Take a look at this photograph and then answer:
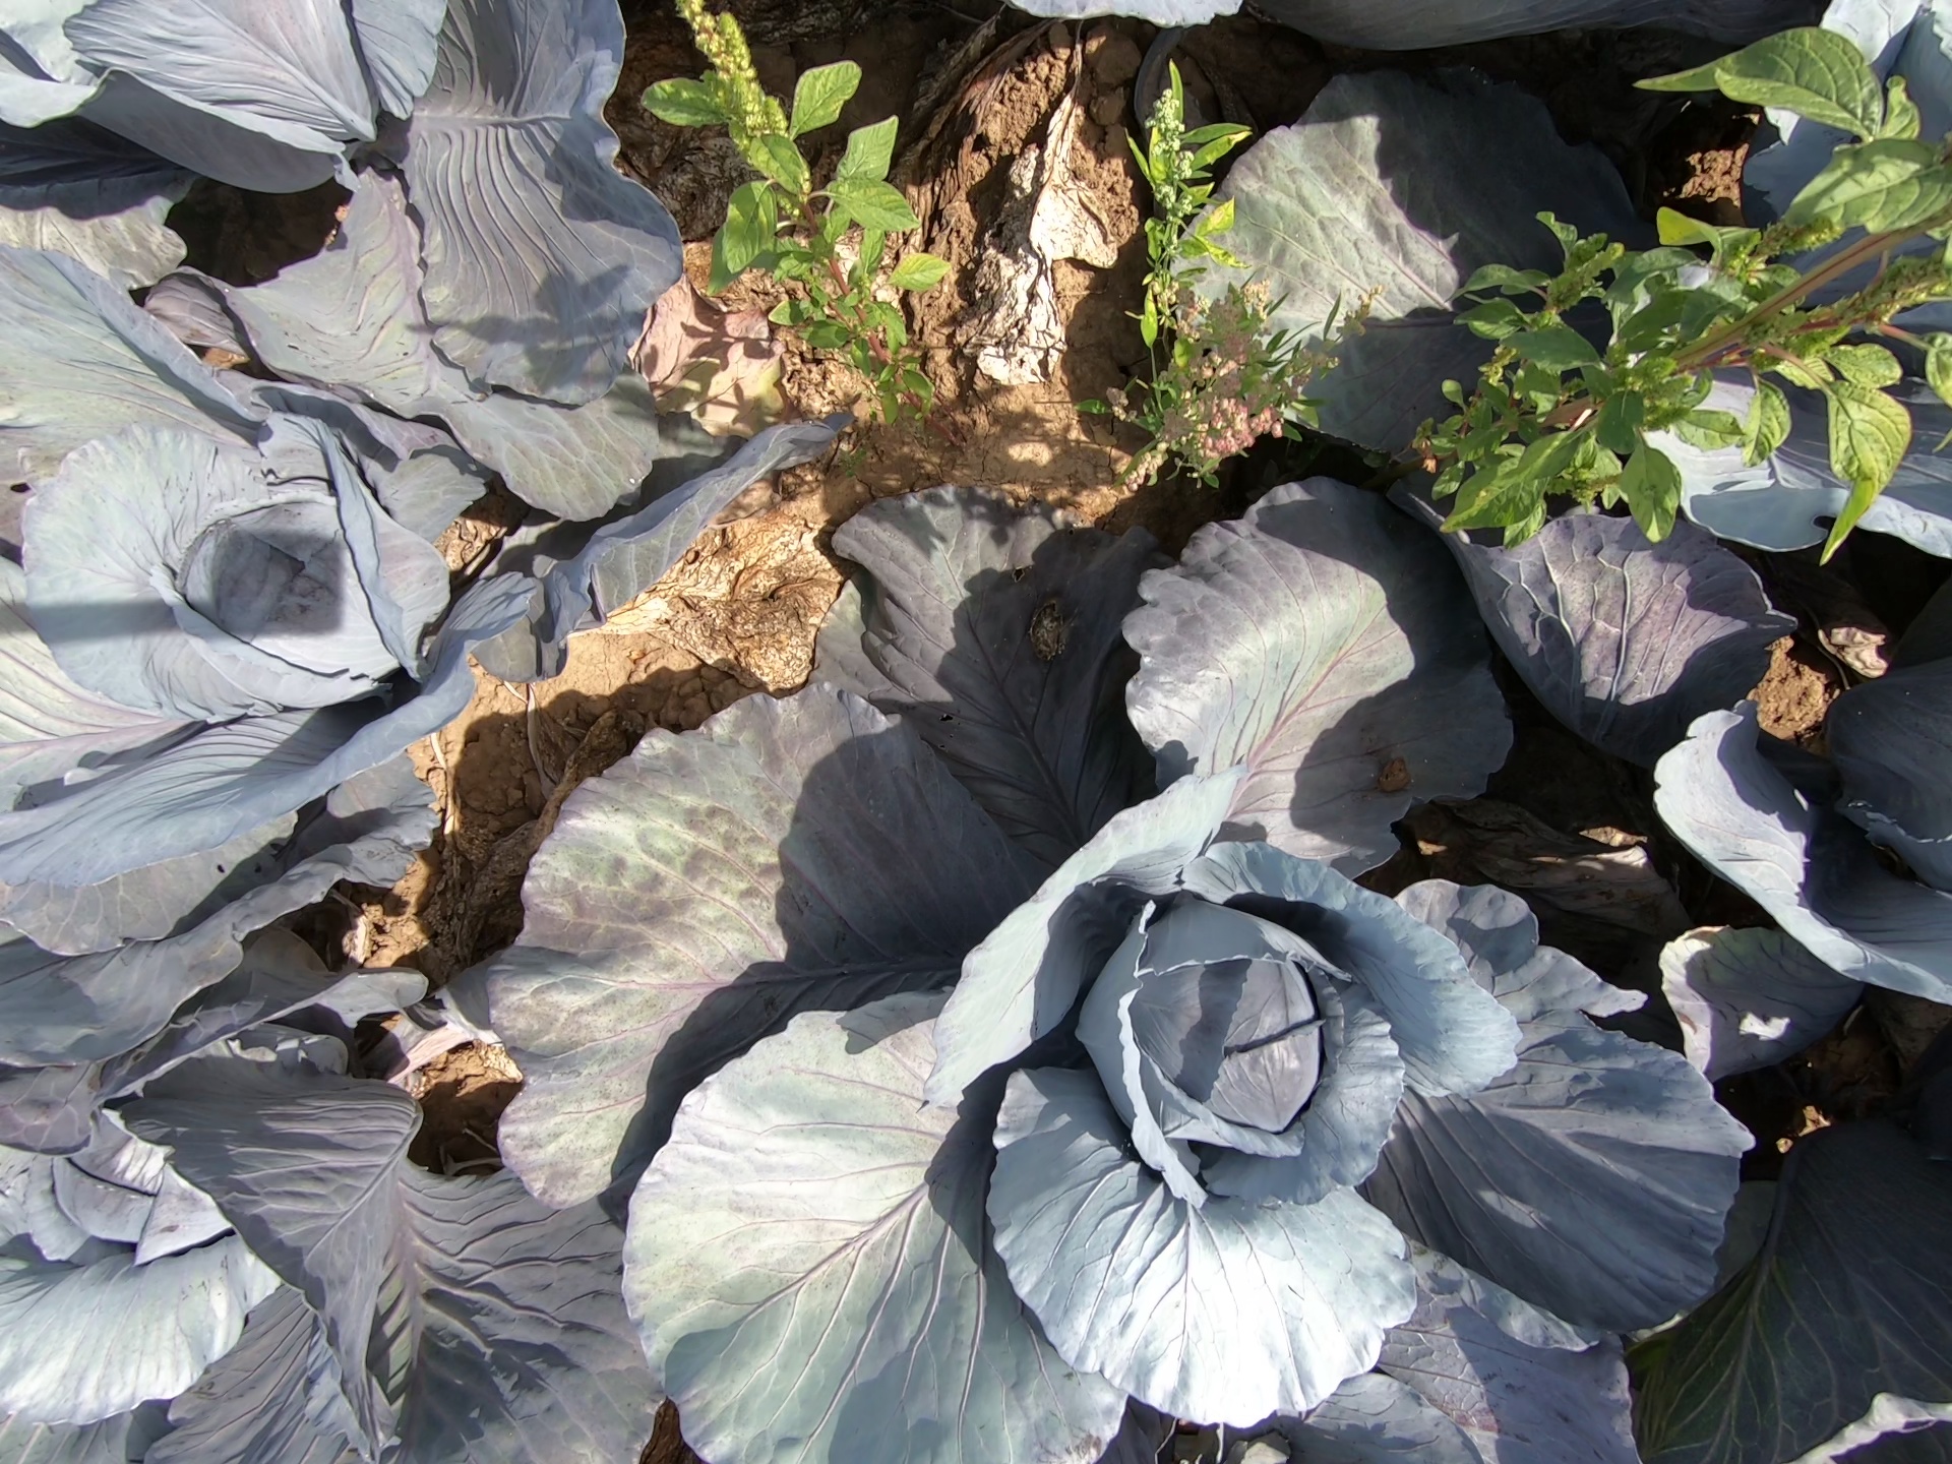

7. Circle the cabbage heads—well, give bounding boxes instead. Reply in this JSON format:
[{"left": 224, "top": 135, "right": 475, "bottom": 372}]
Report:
[
  {"left": 49, "top": 1081, "right": 325, "bottom": 1247},
  {"left": 170, "top": 495, "right": 430, "bottom": 705},
  {"left": 1098, "top": 909, "right": 1331, "bottom": 1149}
]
